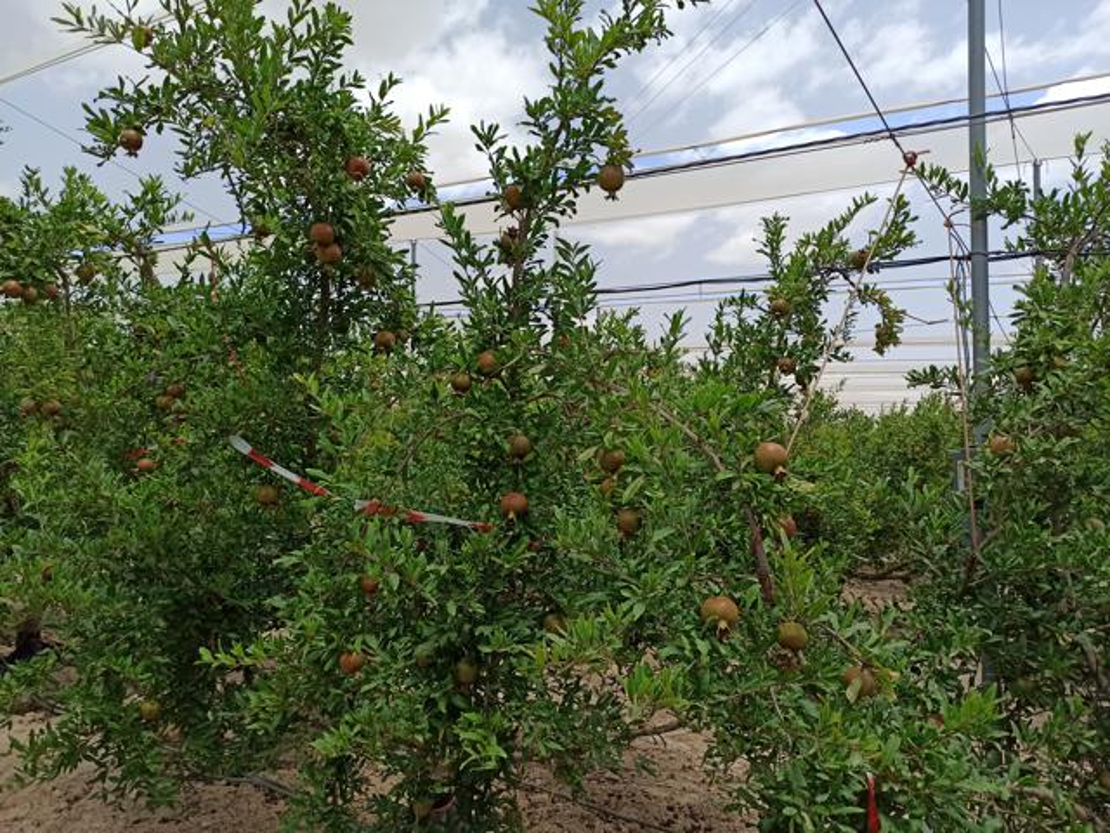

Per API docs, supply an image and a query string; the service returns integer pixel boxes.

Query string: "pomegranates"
[0,279,24,298]
[140,26,154,49]
[503,186,522,210]
[361,578,380,592]
[777,357,796,375]
[375,330,397,352]
[404,170,425,194]
[475,351,498,377]
[139,701,163,720]
[47,285,59,300]
[541,614,565,630]
[76,266,94,285]
[137,456,154,469]
[779,517,796,538]
[598,448,624,470]
[510,436,532,458]
[990,436,1016,453]
[768,298,789,319]
[336,653,368,680]
[307,220,335,253]
[598,163,624,201]
[21,286,40,305]
[777,621,808,654]
[19,401,38,418]
[120,128,142,158]
[499,491,529,522]
[316,241,342,264]
[454,663,479,685]
[43,401,62,416]
[756,441,789,482]
[600,477,610,495]
[616,508,642,533]
[701,595,739,639]
[1015,368,1034,390]
[345,156,369,182]
[154,396,175,410]
[451,373,472,392]
[165,385,182,397]
[845,666,878,696]
[257,484,279,505]
[850,248,869,267]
